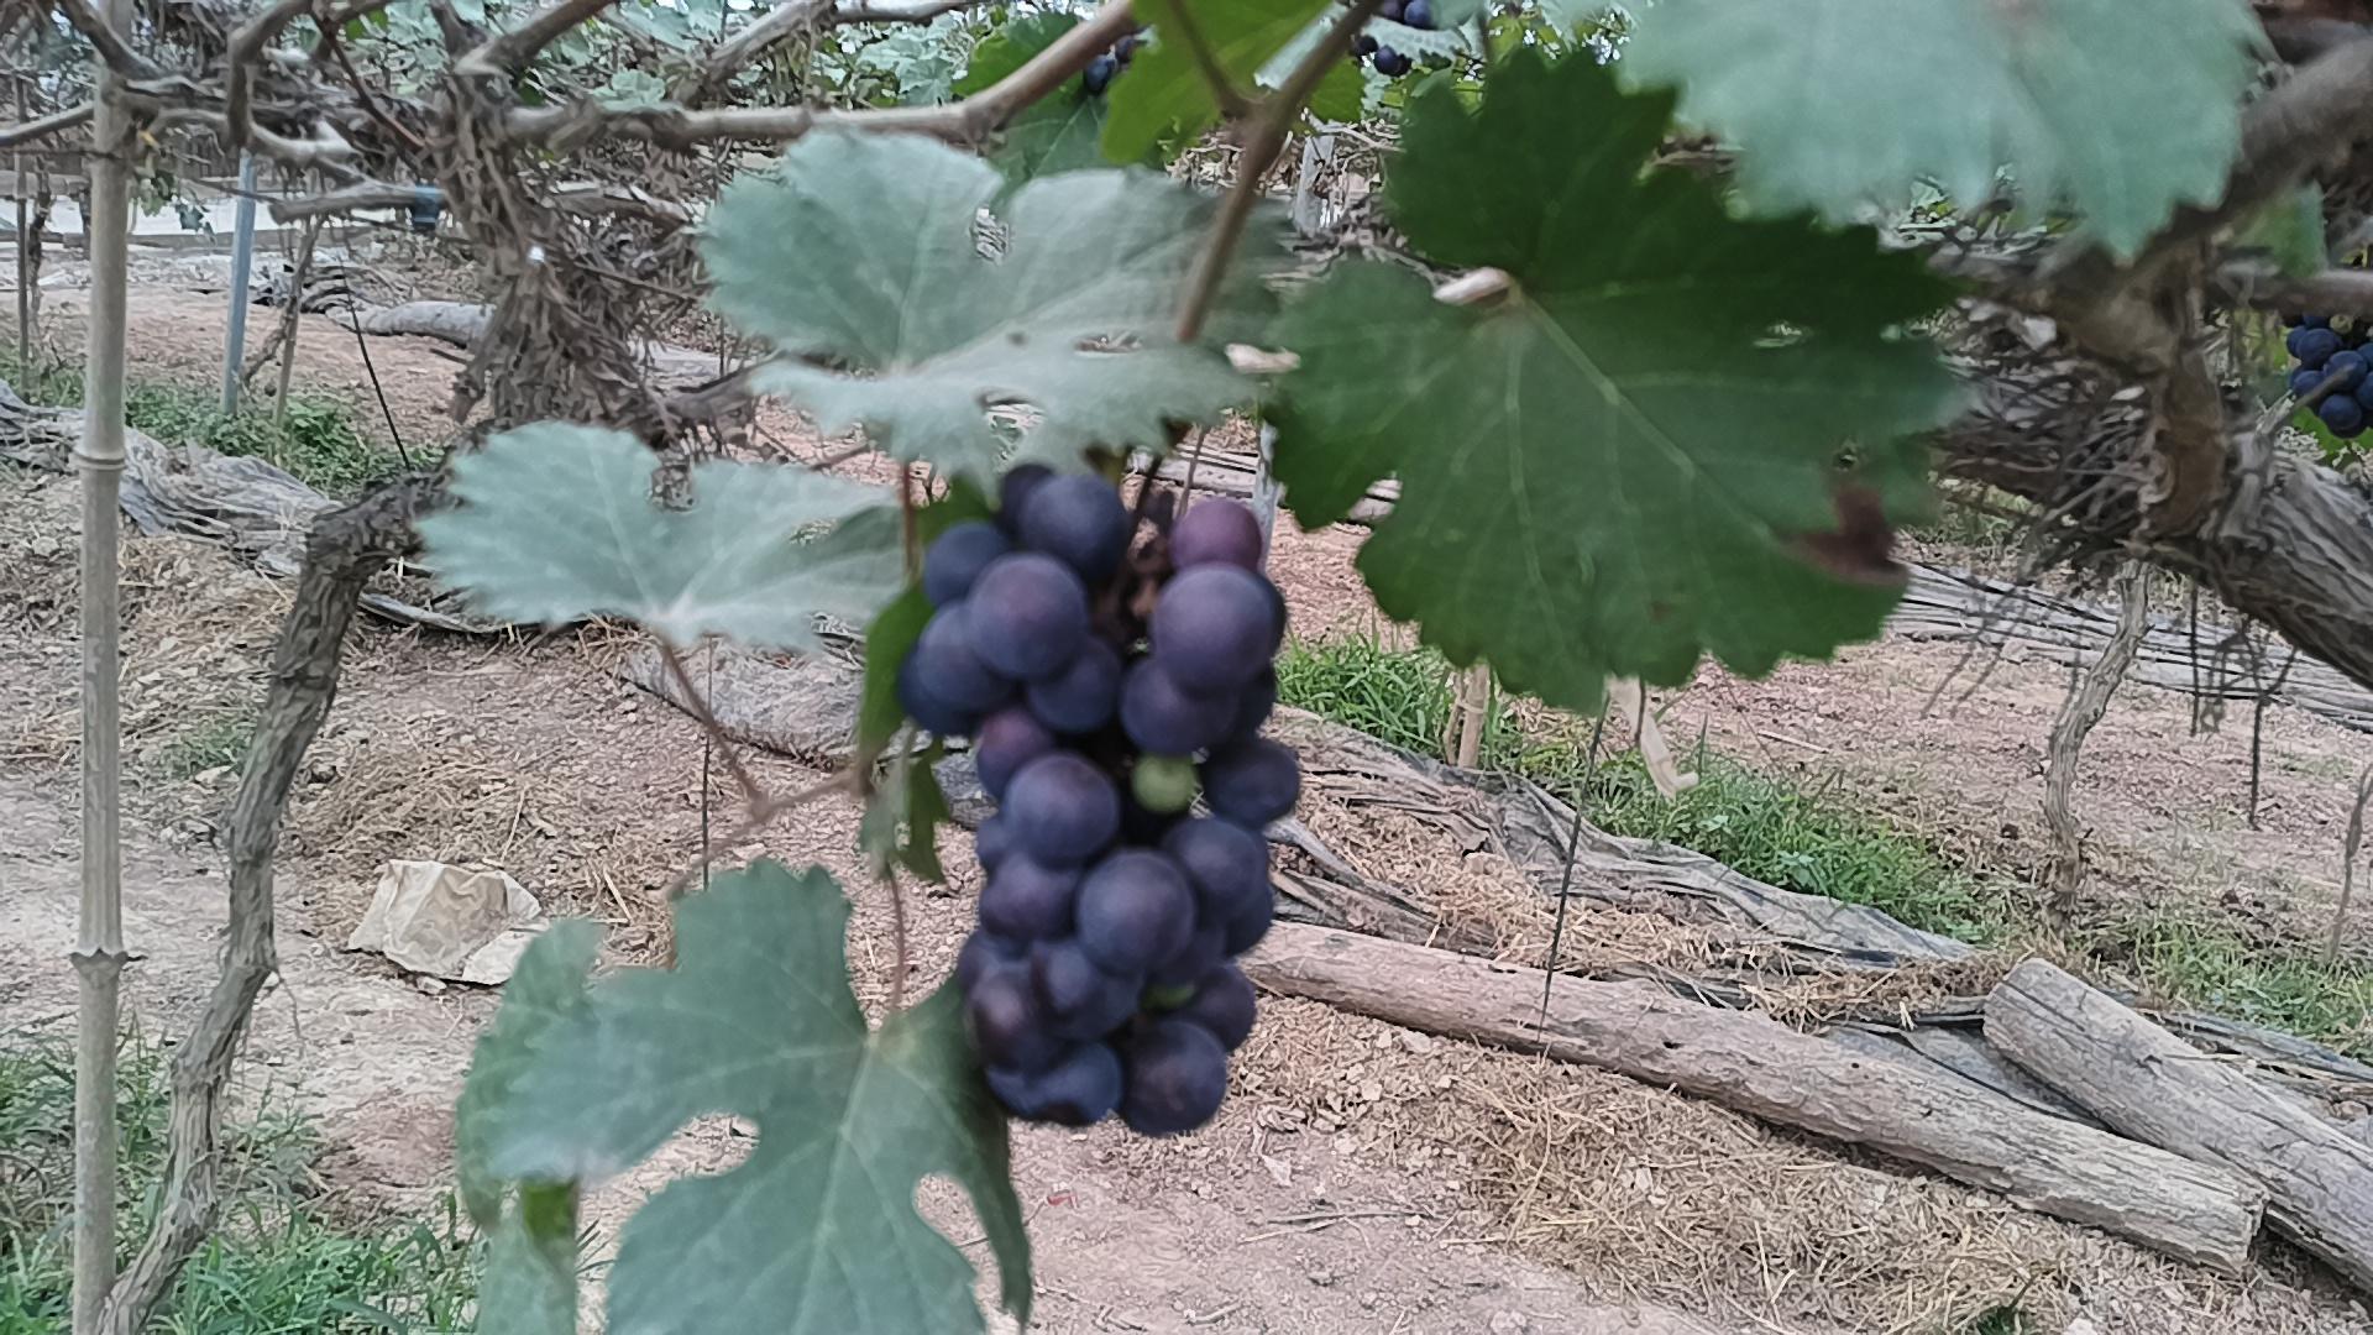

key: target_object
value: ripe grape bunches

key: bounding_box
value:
[899,465,1301,1135]
[1083,35,1144,95]
[1353,0,1437,77]
[2283,314,2372,438]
